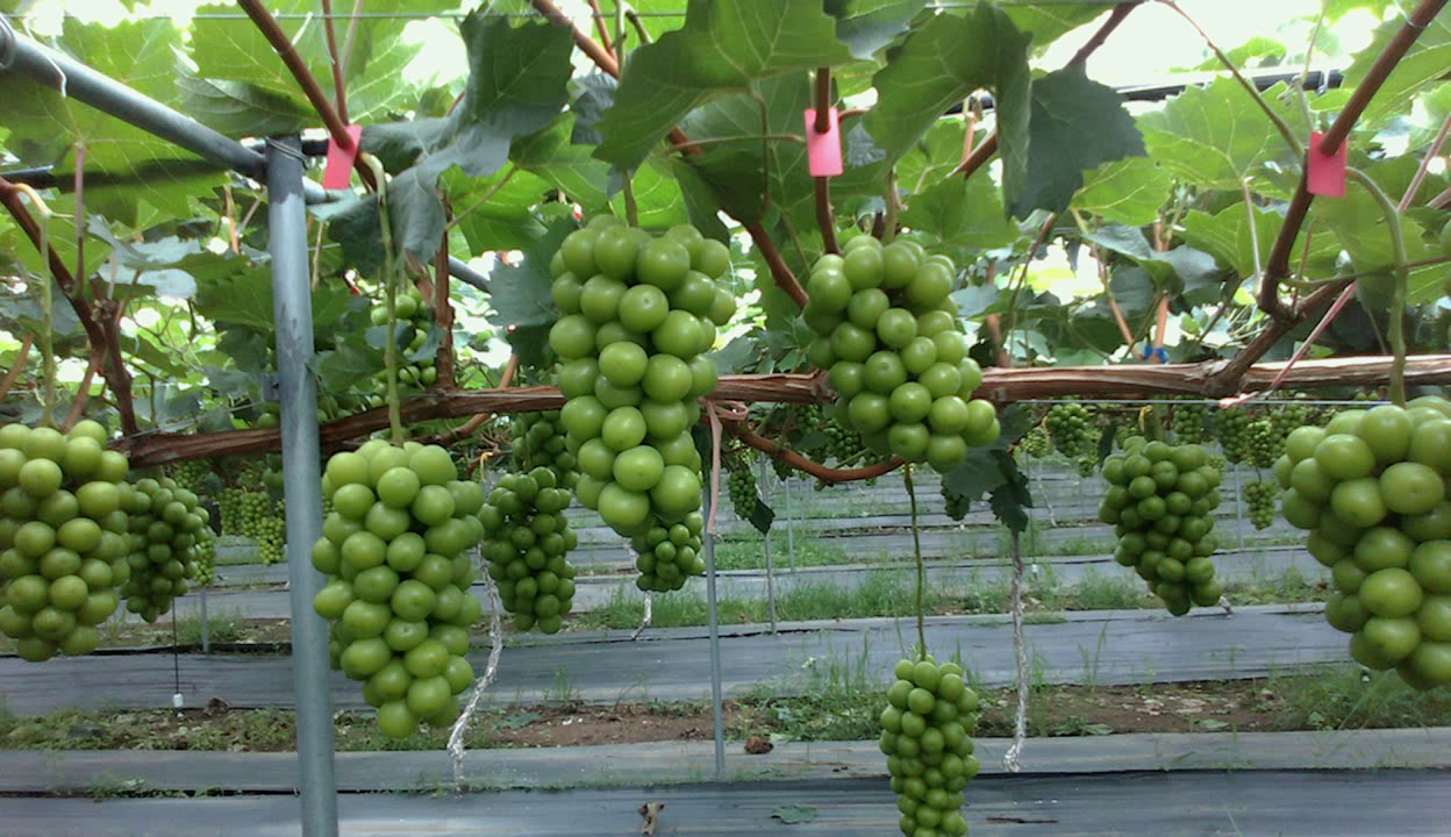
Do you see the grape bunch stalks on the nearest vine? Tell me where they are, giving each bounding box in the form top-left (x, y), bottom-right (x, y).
top-left (9, 183), bottom-right (55, 428)
top-left (880, 169), bottom-right (898, 248)
top-left (1346, 166), bottom-right (1408, 408)
top-left (358, 151), bottom-right (403, 448)
top-left (619, 171), bottom-right (639, 228)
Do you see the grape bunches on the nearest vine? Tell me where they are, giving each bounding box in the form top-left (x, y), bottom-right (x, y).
top-left (1273, 395), bottom-right (1450, 691)
top-left (309, 438), bottom-right (484, 739)
top-left (0, 420), bottom-right (133, 663)
top-left (549, 214), bottom-right (736, 528)
top-left (800, 234), bottom-right (1000, 473)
